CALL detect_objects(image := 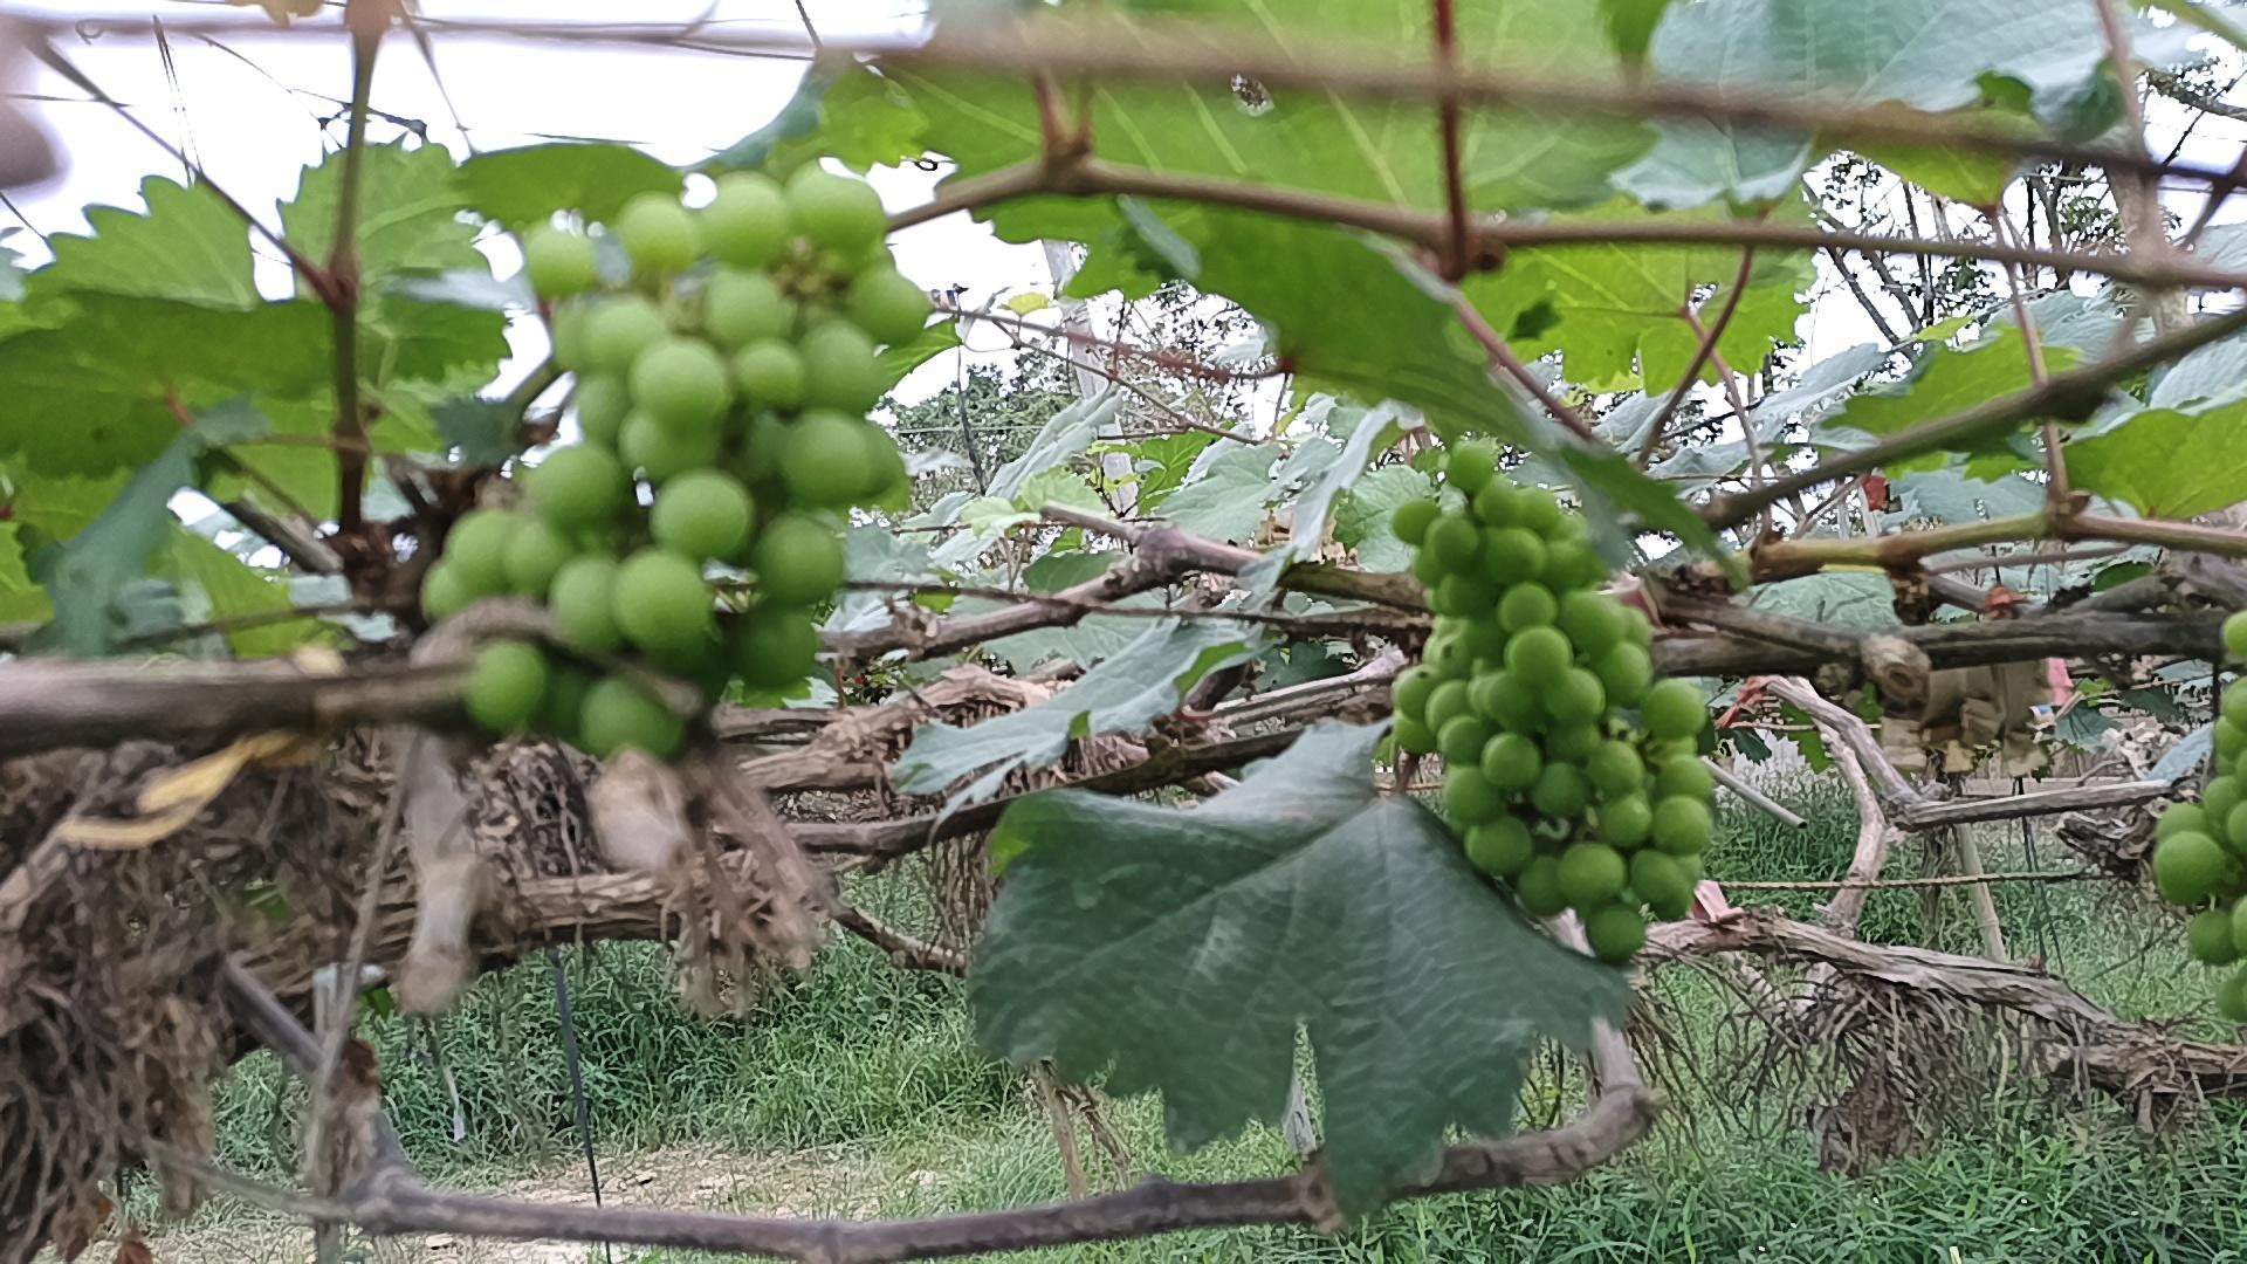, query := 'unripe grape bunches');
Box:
[1393,440,1712,959]
[2152,672,2246,1023]
[425,163,927,762]
[2222,611,2246,662]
